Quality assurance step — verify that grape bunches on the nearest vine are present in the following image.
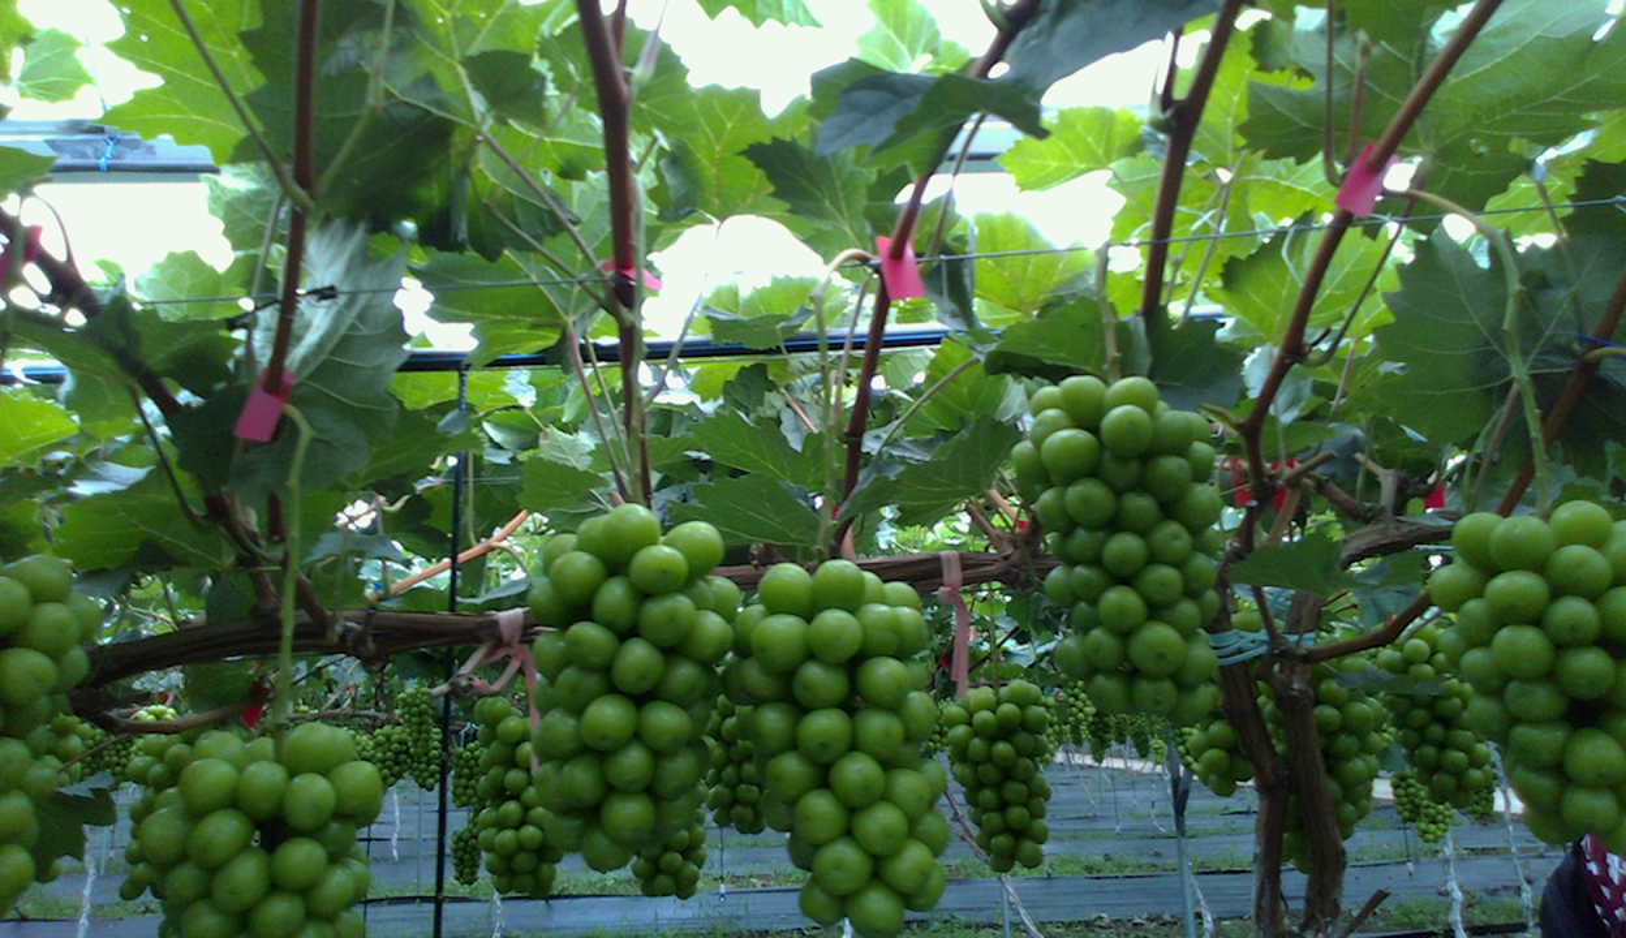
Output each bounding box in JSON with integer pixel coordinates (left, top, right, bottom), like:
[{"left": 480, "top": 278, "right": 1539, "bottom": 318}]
[
  {"left": 722, "top": 560, "right": 952, "bottom": 937},
  {"left": 1425, "top": 499, "right": 1625, "bottom": 857},
  {"left": 142, "top": 719, "right": 383, "bottom": 937},
  {"left": 1012, "top": 375, "right": 1223, "bottom": 730},
  {"left": 522, "top": 504, "right": 741, "bottom": 878}
]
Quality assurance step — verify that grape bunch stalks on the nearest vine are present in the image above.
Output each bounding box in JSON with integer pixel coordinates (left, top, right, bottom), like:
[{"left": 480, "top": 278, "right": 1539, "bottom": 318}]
[
  {"left": 808, "top": 249, "right": 866, "bottom": 561},
  {"left": 275, "top": 408, "right": 313, "bottom": 758},
  {"left": 1389, "top": 190, "right": 1550, "bottom": 516},
  {"left": 1094, "top": 242, "right": 1120, "bottom": 383},
  {"left": 629, "top": 178, "right": 645, "bottom": 504}
]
